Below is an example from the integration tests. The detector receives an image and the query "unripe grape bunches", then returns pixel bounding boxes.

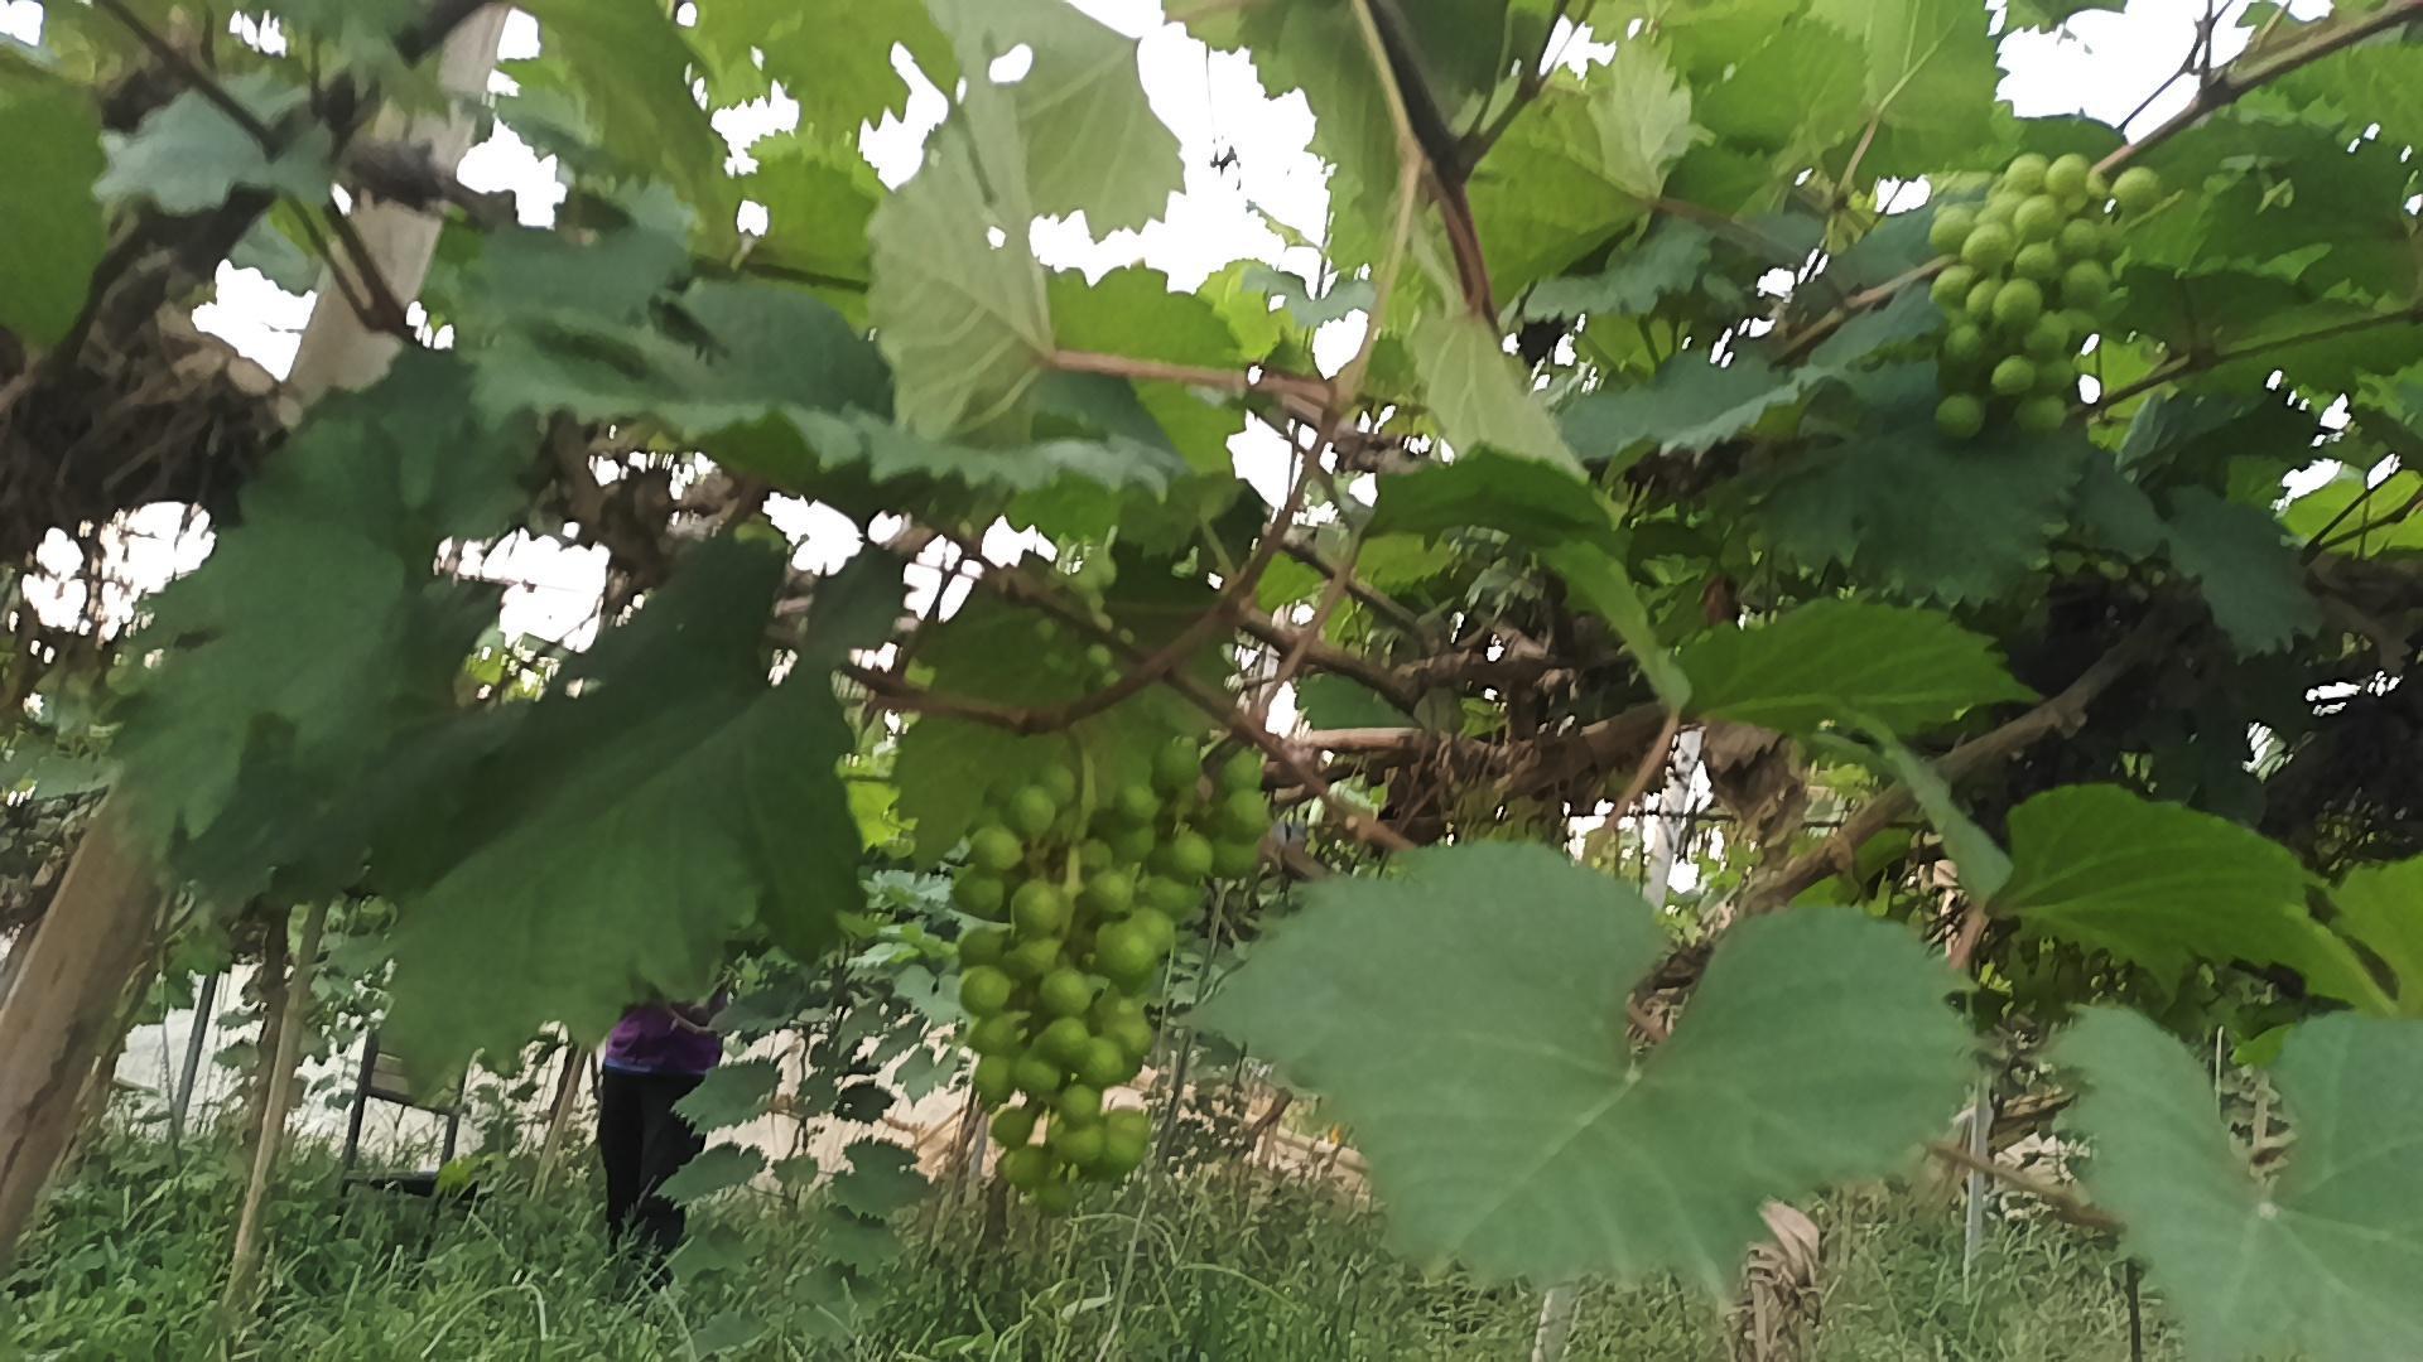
[1930,154,2164,436]
[954,733,1267,1211]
